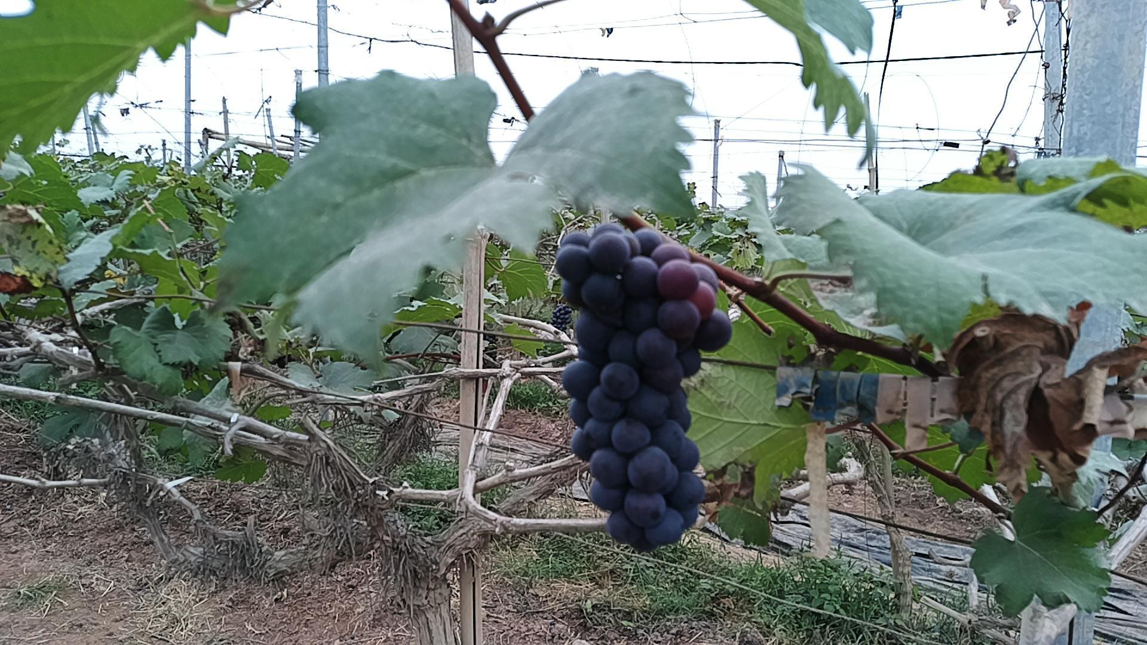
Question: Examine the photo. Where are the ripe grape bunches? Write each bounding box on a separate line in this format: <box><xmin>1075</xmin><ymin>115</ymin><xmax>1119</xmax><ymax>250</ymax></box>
<box><xmin>556</xmin><ymin>223</ymin><xmax>731</xmax><ymax>549</ymax></box>
<box><xmin>550</xmin><ymin>300</ymin><xmax>576</xmax><ymax>336</ymax></box>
